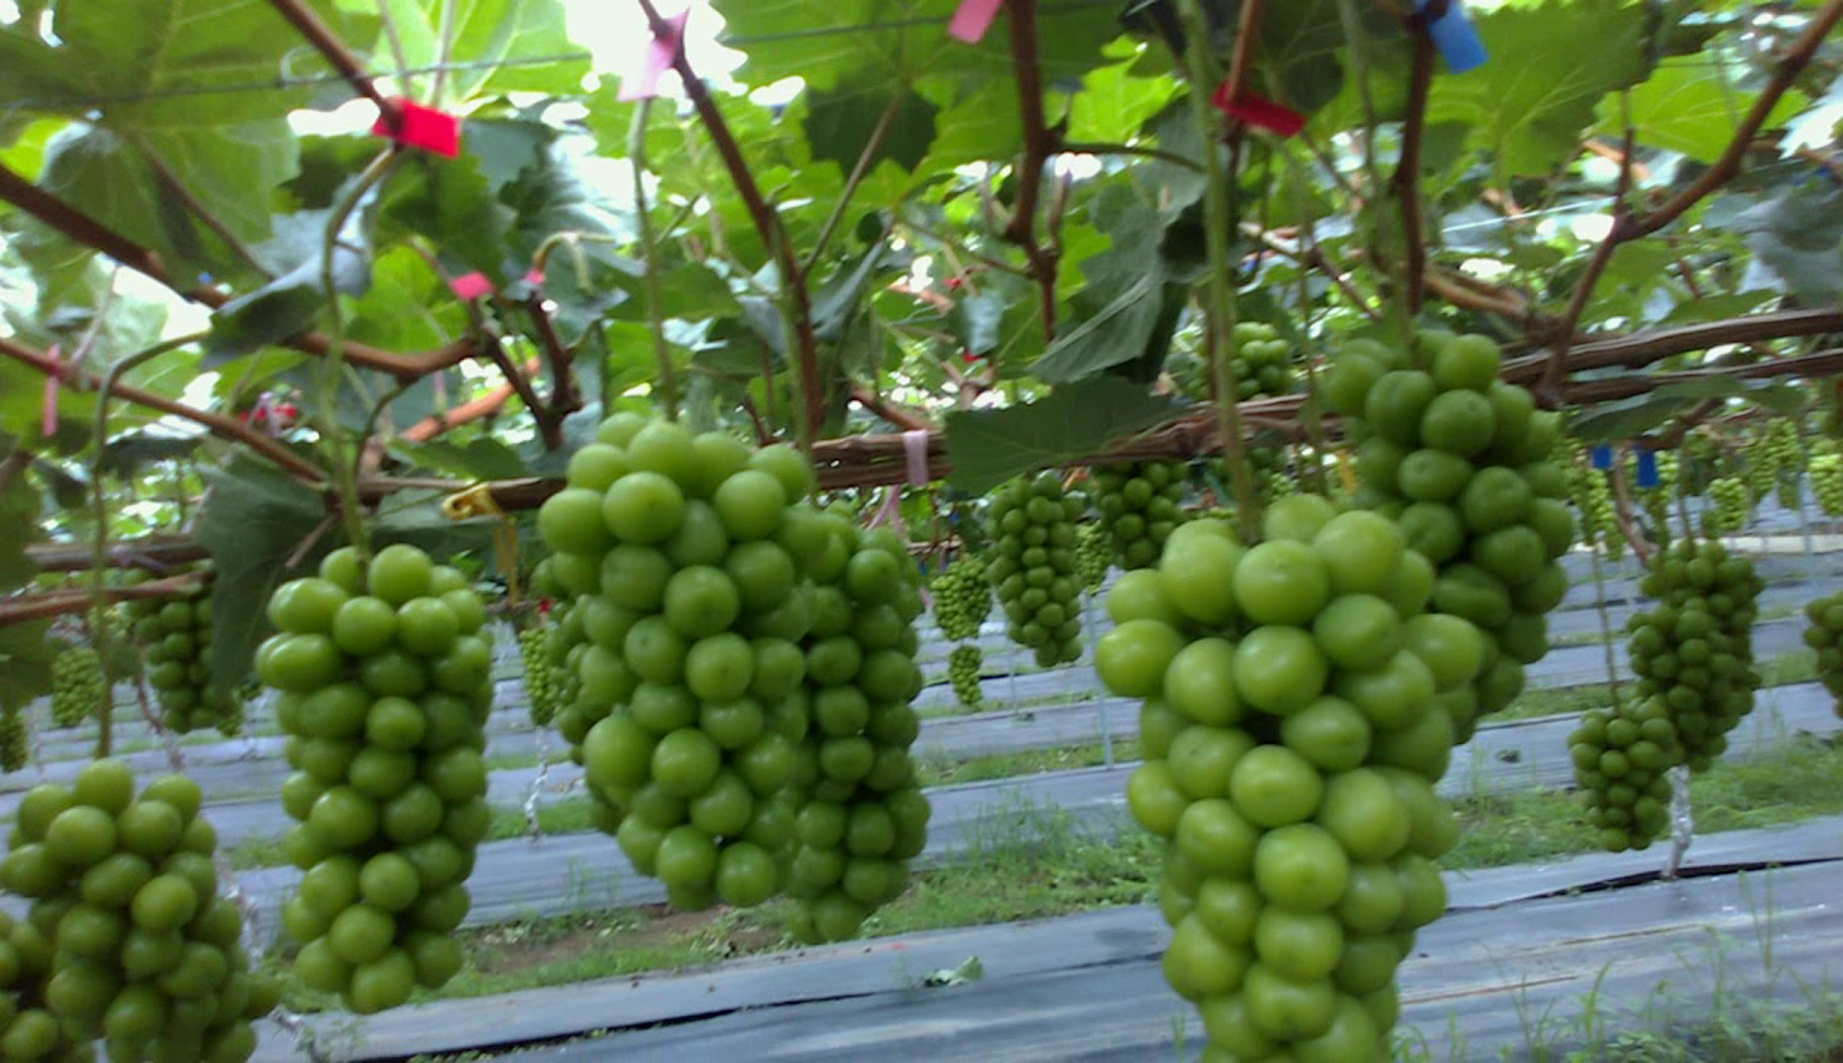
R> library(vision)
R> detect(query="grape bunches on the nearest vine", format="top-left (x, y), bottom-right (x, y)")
top-left (0, 759), bottom-right (284, 1062)
top-left (1323, 332), bottom-right (1574, 743)
top-left (255, 543), bottom-right (493, 1017)
top-left (1094, 489), bottom-right (1484, 1062)
top-left (786, 505), bottom-right (930, 940)
top-left (538, 415), bottom-right (830, 912)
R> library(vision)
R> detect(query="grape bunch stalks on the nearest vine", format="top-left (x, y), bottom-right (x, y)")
top-left (315, 154), bottom-right (385, 588)
top-left (1177, 0), bottom-right (1260, 543)
top-left (626, 103), bottom-right (678, 425)
top-left (1336, 1), bottom-right (1427, 359)
top-left (777, 233), bottom-right (821, 502)
top-left (89, 329), bottom-right (205, 754)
